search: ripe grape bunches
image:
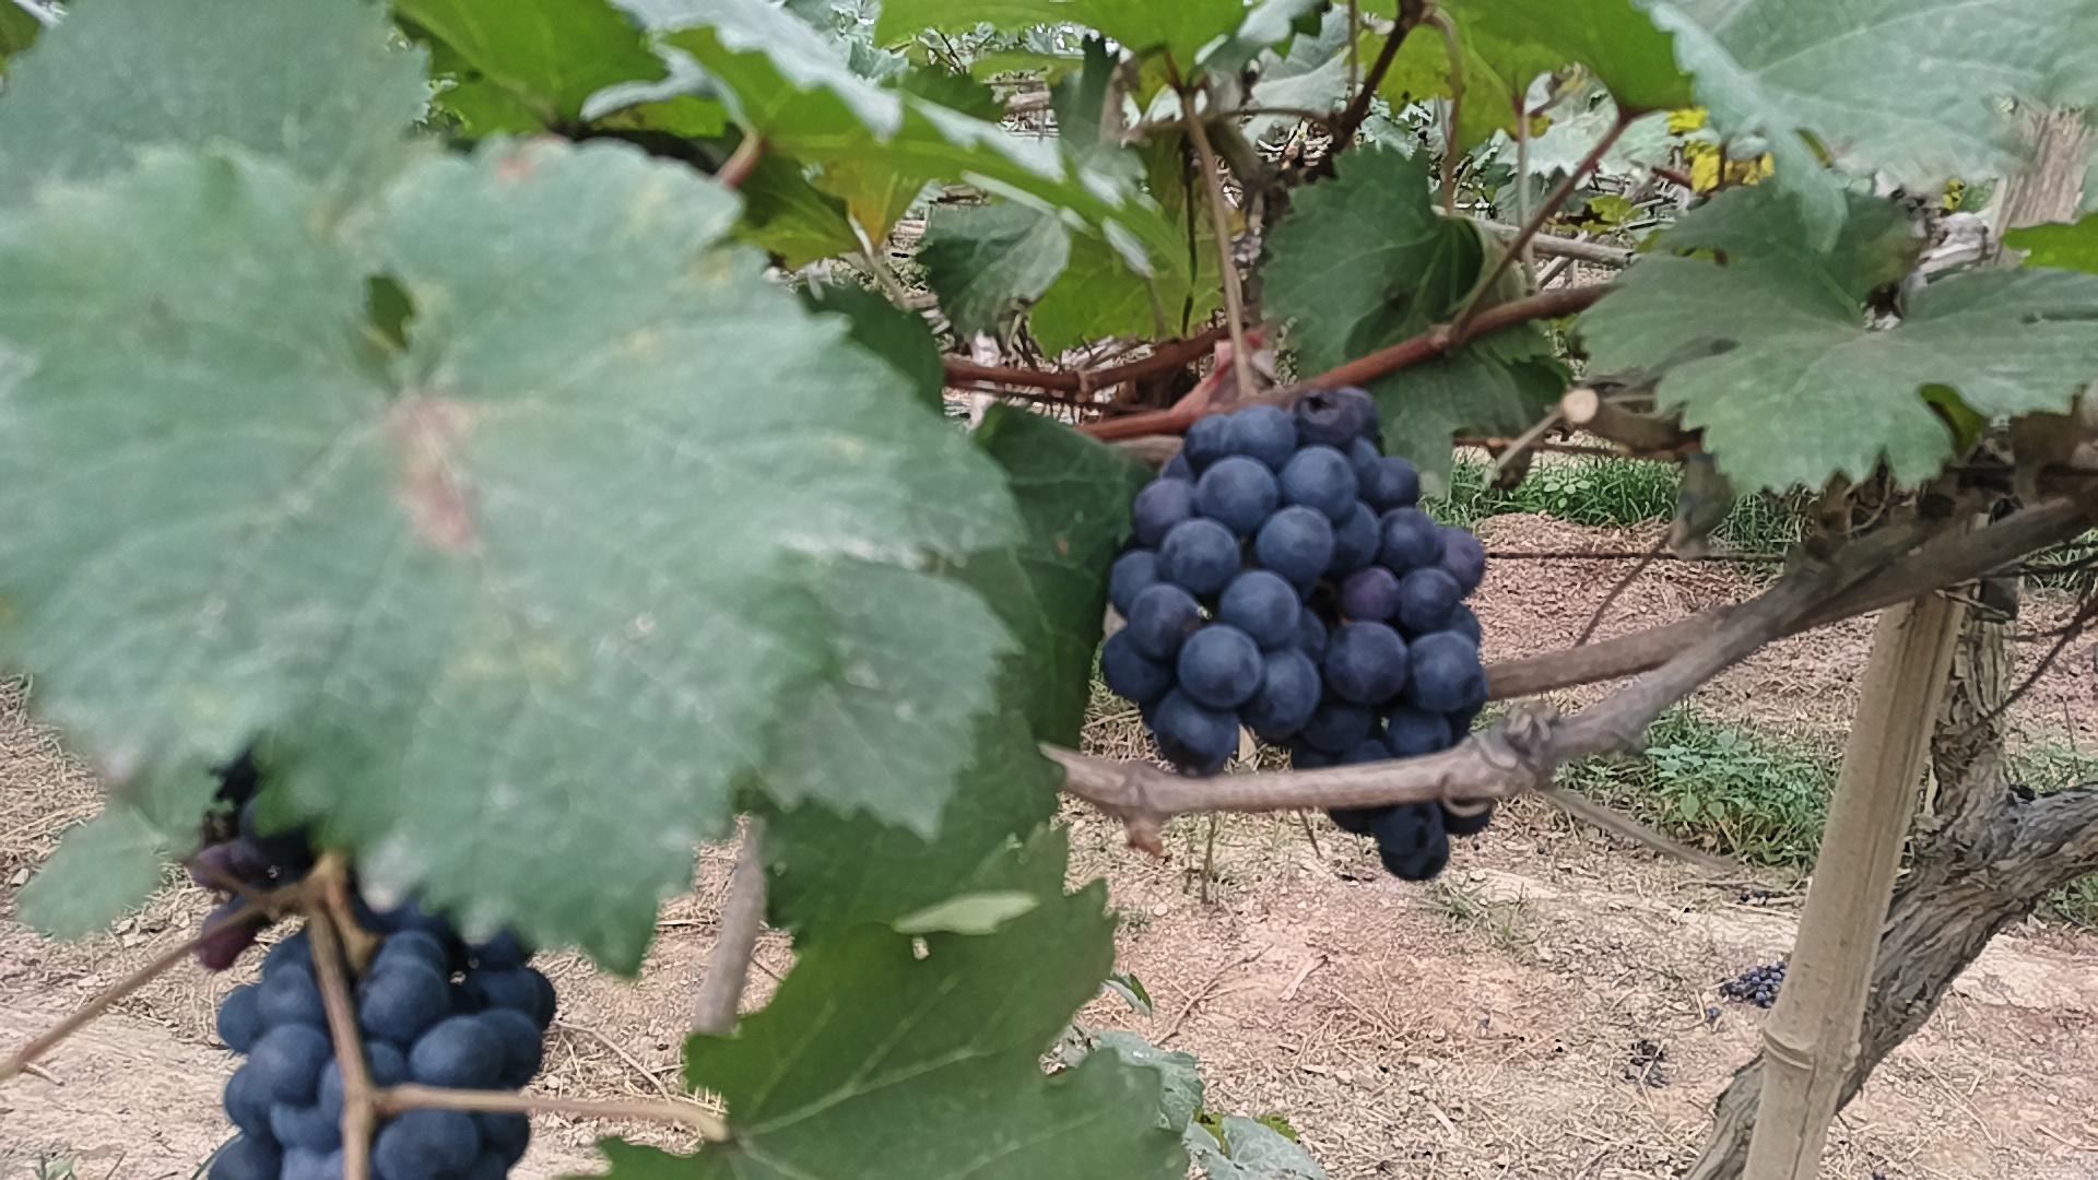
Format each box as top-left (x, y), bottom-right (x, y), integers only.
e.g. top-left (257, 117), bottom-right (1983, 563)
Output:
top-left (203, 866), bottom-right (555, 1179)
top-left (187, 754), bottom-right (315, 972)
top-left (1100, 389), bottom-right (1493, 884)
